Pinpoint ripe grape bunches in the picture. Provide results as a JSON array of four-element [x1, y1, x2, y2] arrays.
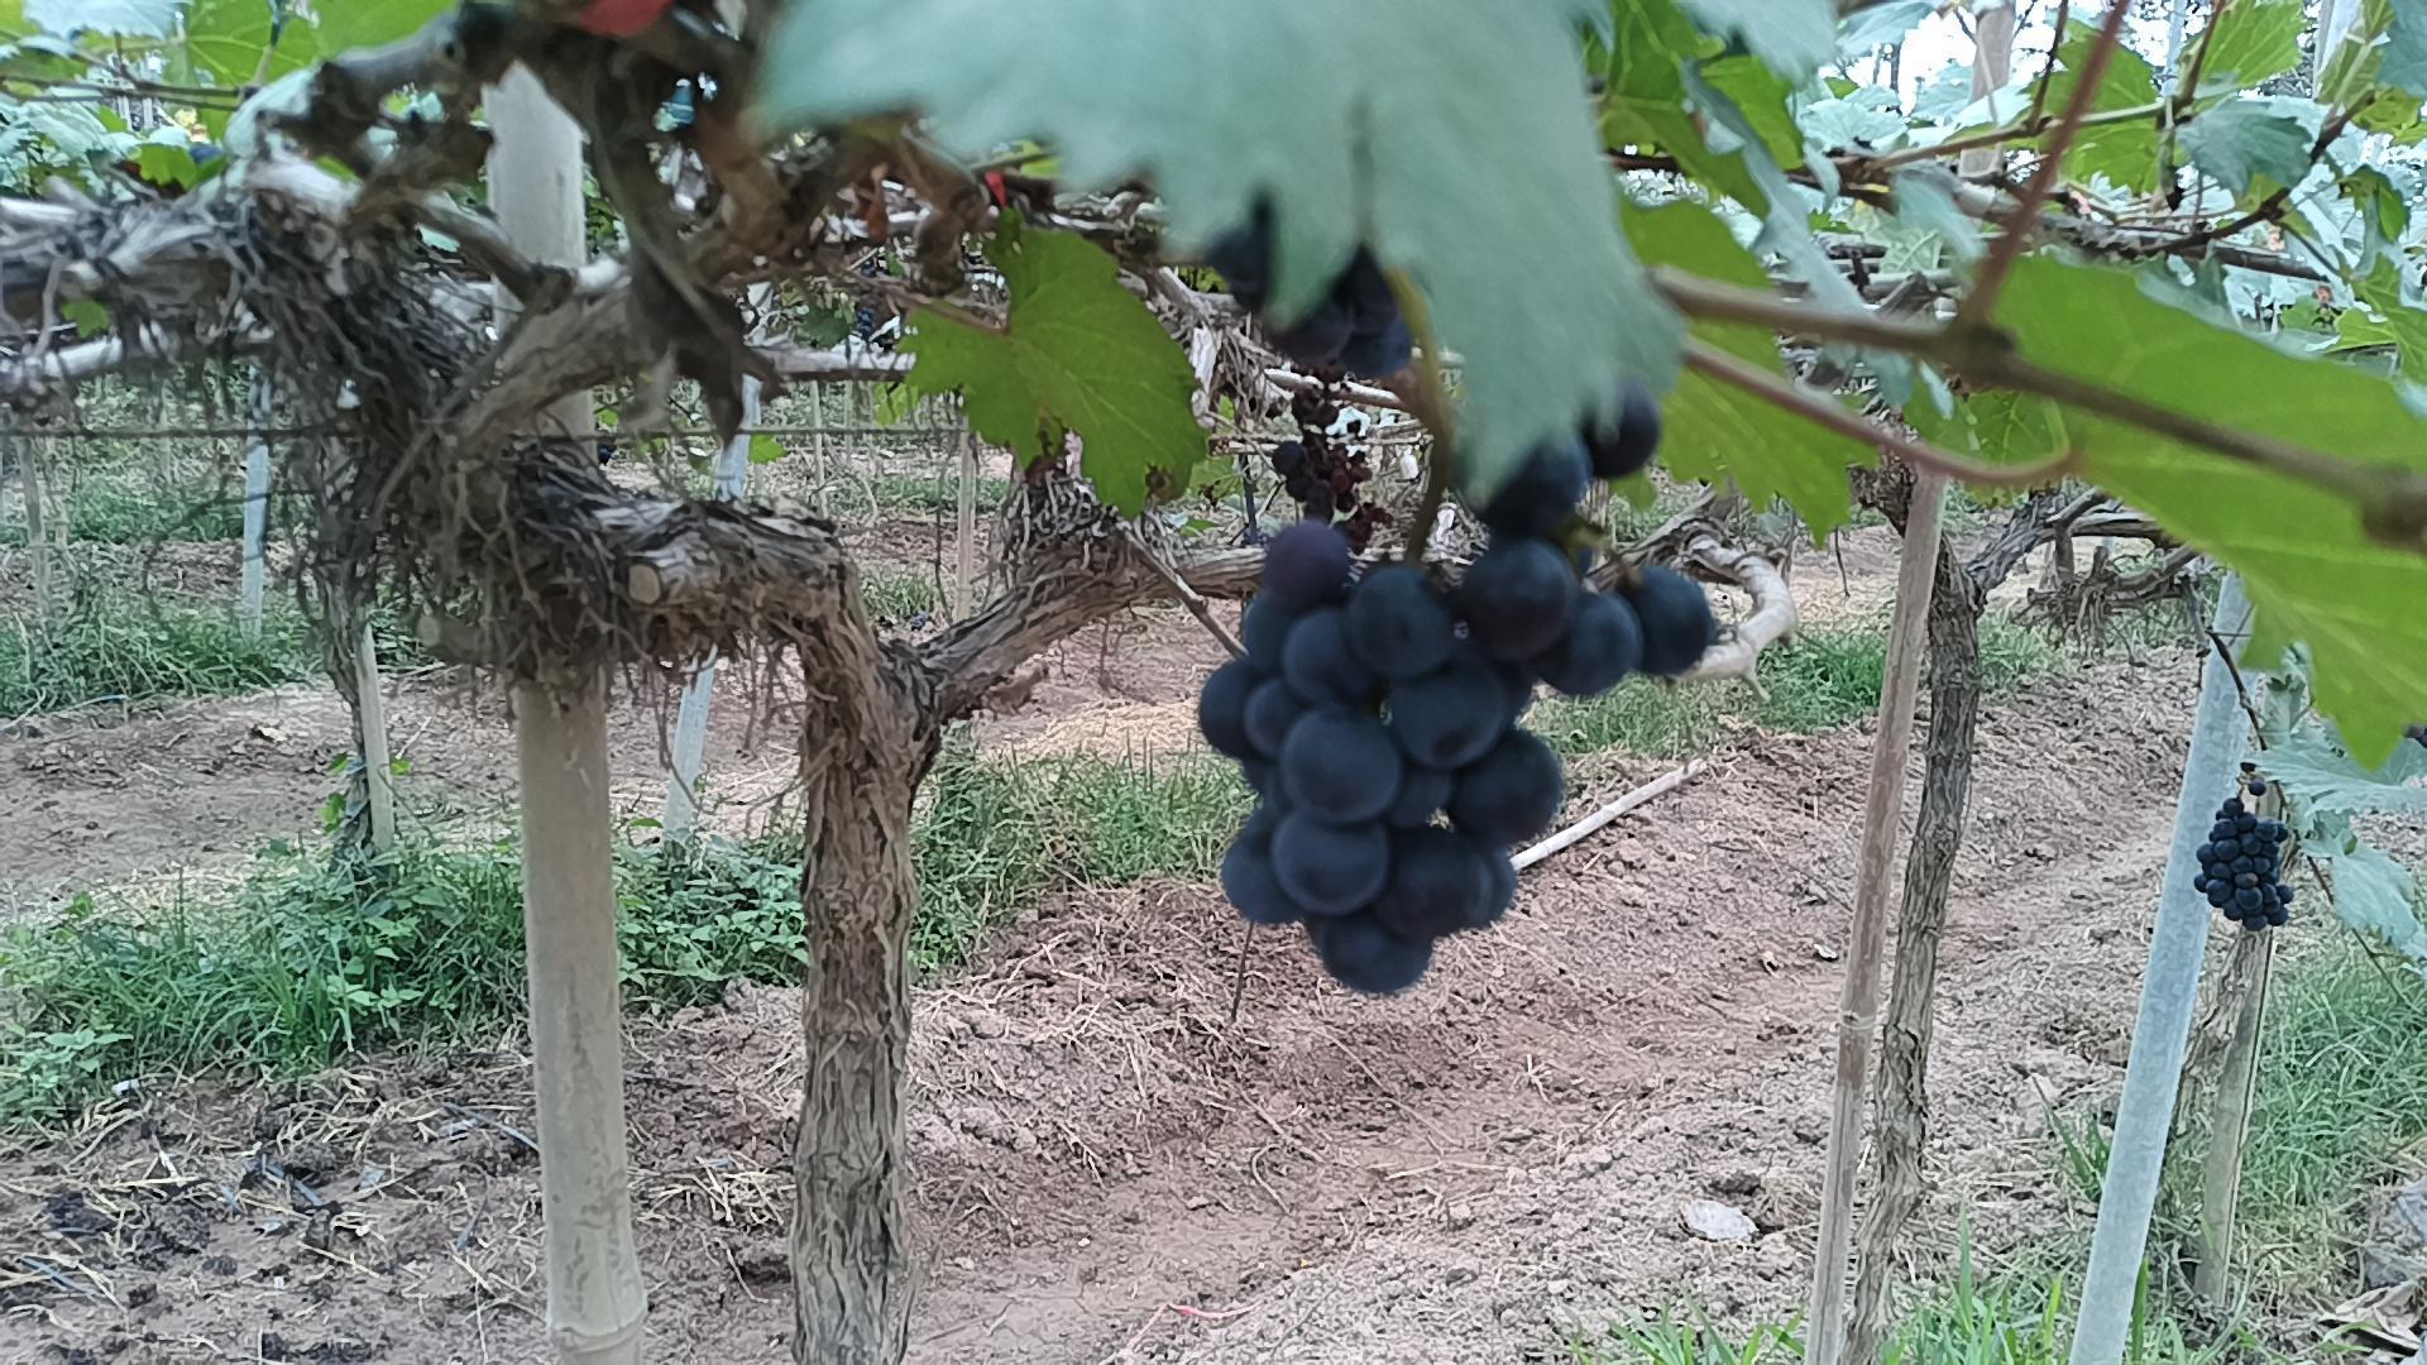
[[1269, 389, 1390, 551], [2404, 725, 2426, 747], [1203, 200, 1412, 379], [1198, 387, 1718, 993], [2193, 762, 2293, 930]]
